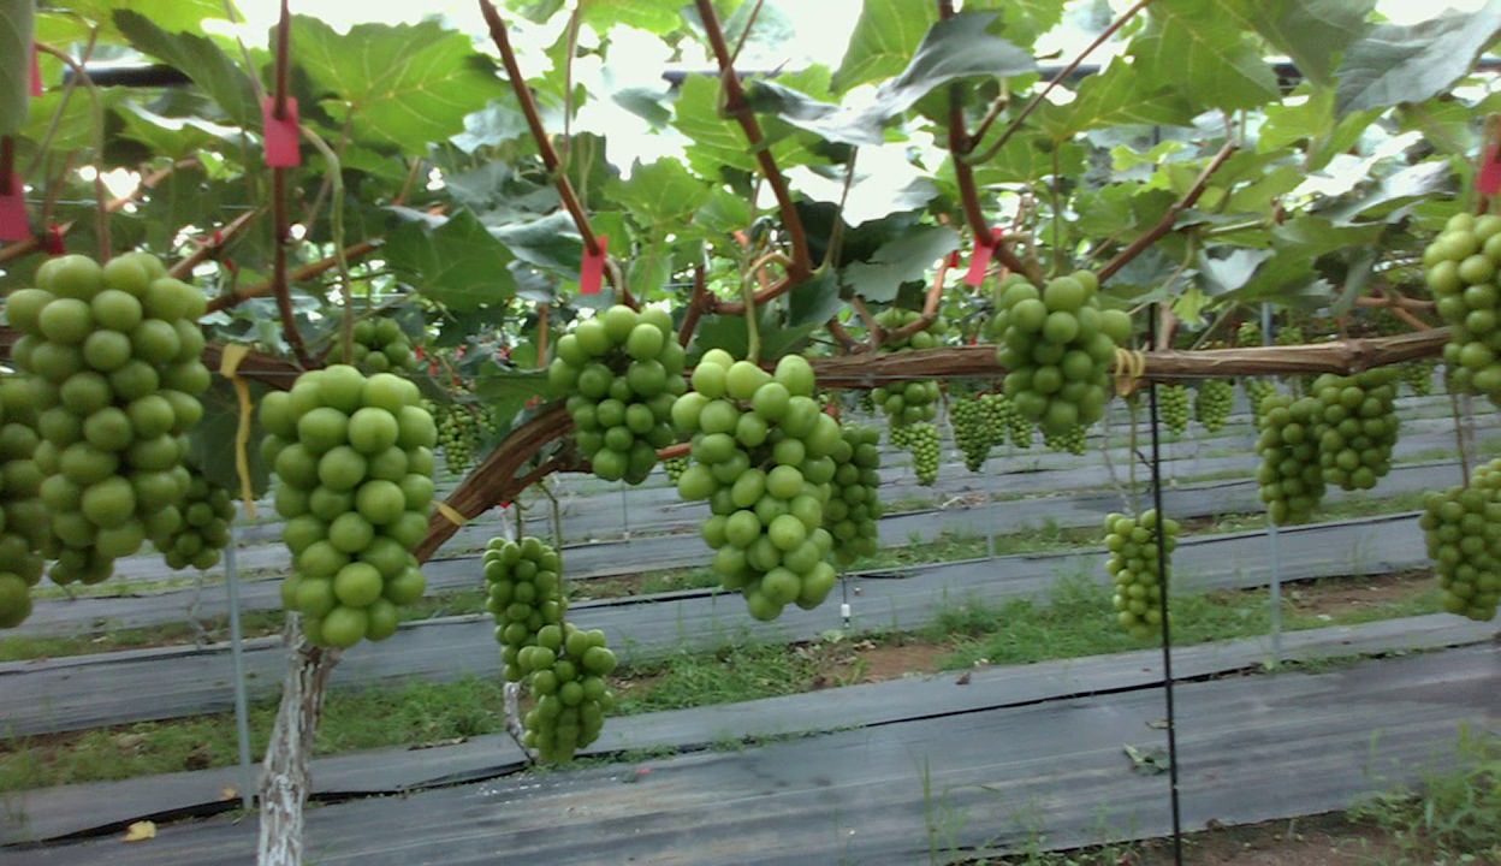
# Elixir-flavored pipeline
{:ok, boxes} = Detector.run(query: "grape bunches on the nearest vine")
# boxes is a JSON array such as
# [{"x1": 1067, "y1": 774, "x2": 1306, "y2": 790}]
[
  {"x1": 261, "y1": 363, "x2": 435, "y2": 649},
  {"x1": 1423, "y1": 214, "x2": 1500, "y2": 405},
  {"x1": 989, "y1": 271, "x2": 1131, "y2": 437},
  {"x1": 5, "y1": 250, "x2": 213, "y2": 557},
  {"x1": 672, "y1": 346, "x2": 838, "y2": 622},
  {"x1": 548, "y1": 306, "x2": 686, "y2": 485}
]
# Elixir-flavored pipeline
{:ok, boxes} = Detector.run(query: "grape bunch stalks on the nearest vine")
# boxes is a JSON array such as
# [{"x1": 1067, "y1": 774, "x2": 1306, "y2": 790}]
[
  {"x1": 305, "y1": 130, "x2": 355, "y2": 363},
  {"x1": 606, "y1": 260, "x2": 624, "y2": 303},
  {"x1": 38, "y1": 45, "x2": 112, "y2": 260},
  {"x1": 1008, "y1": 235, "x2": 1044, "y2": 286},
  {"x1": 741, "y1": 254, "x2": 791, "y2": 367}
]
